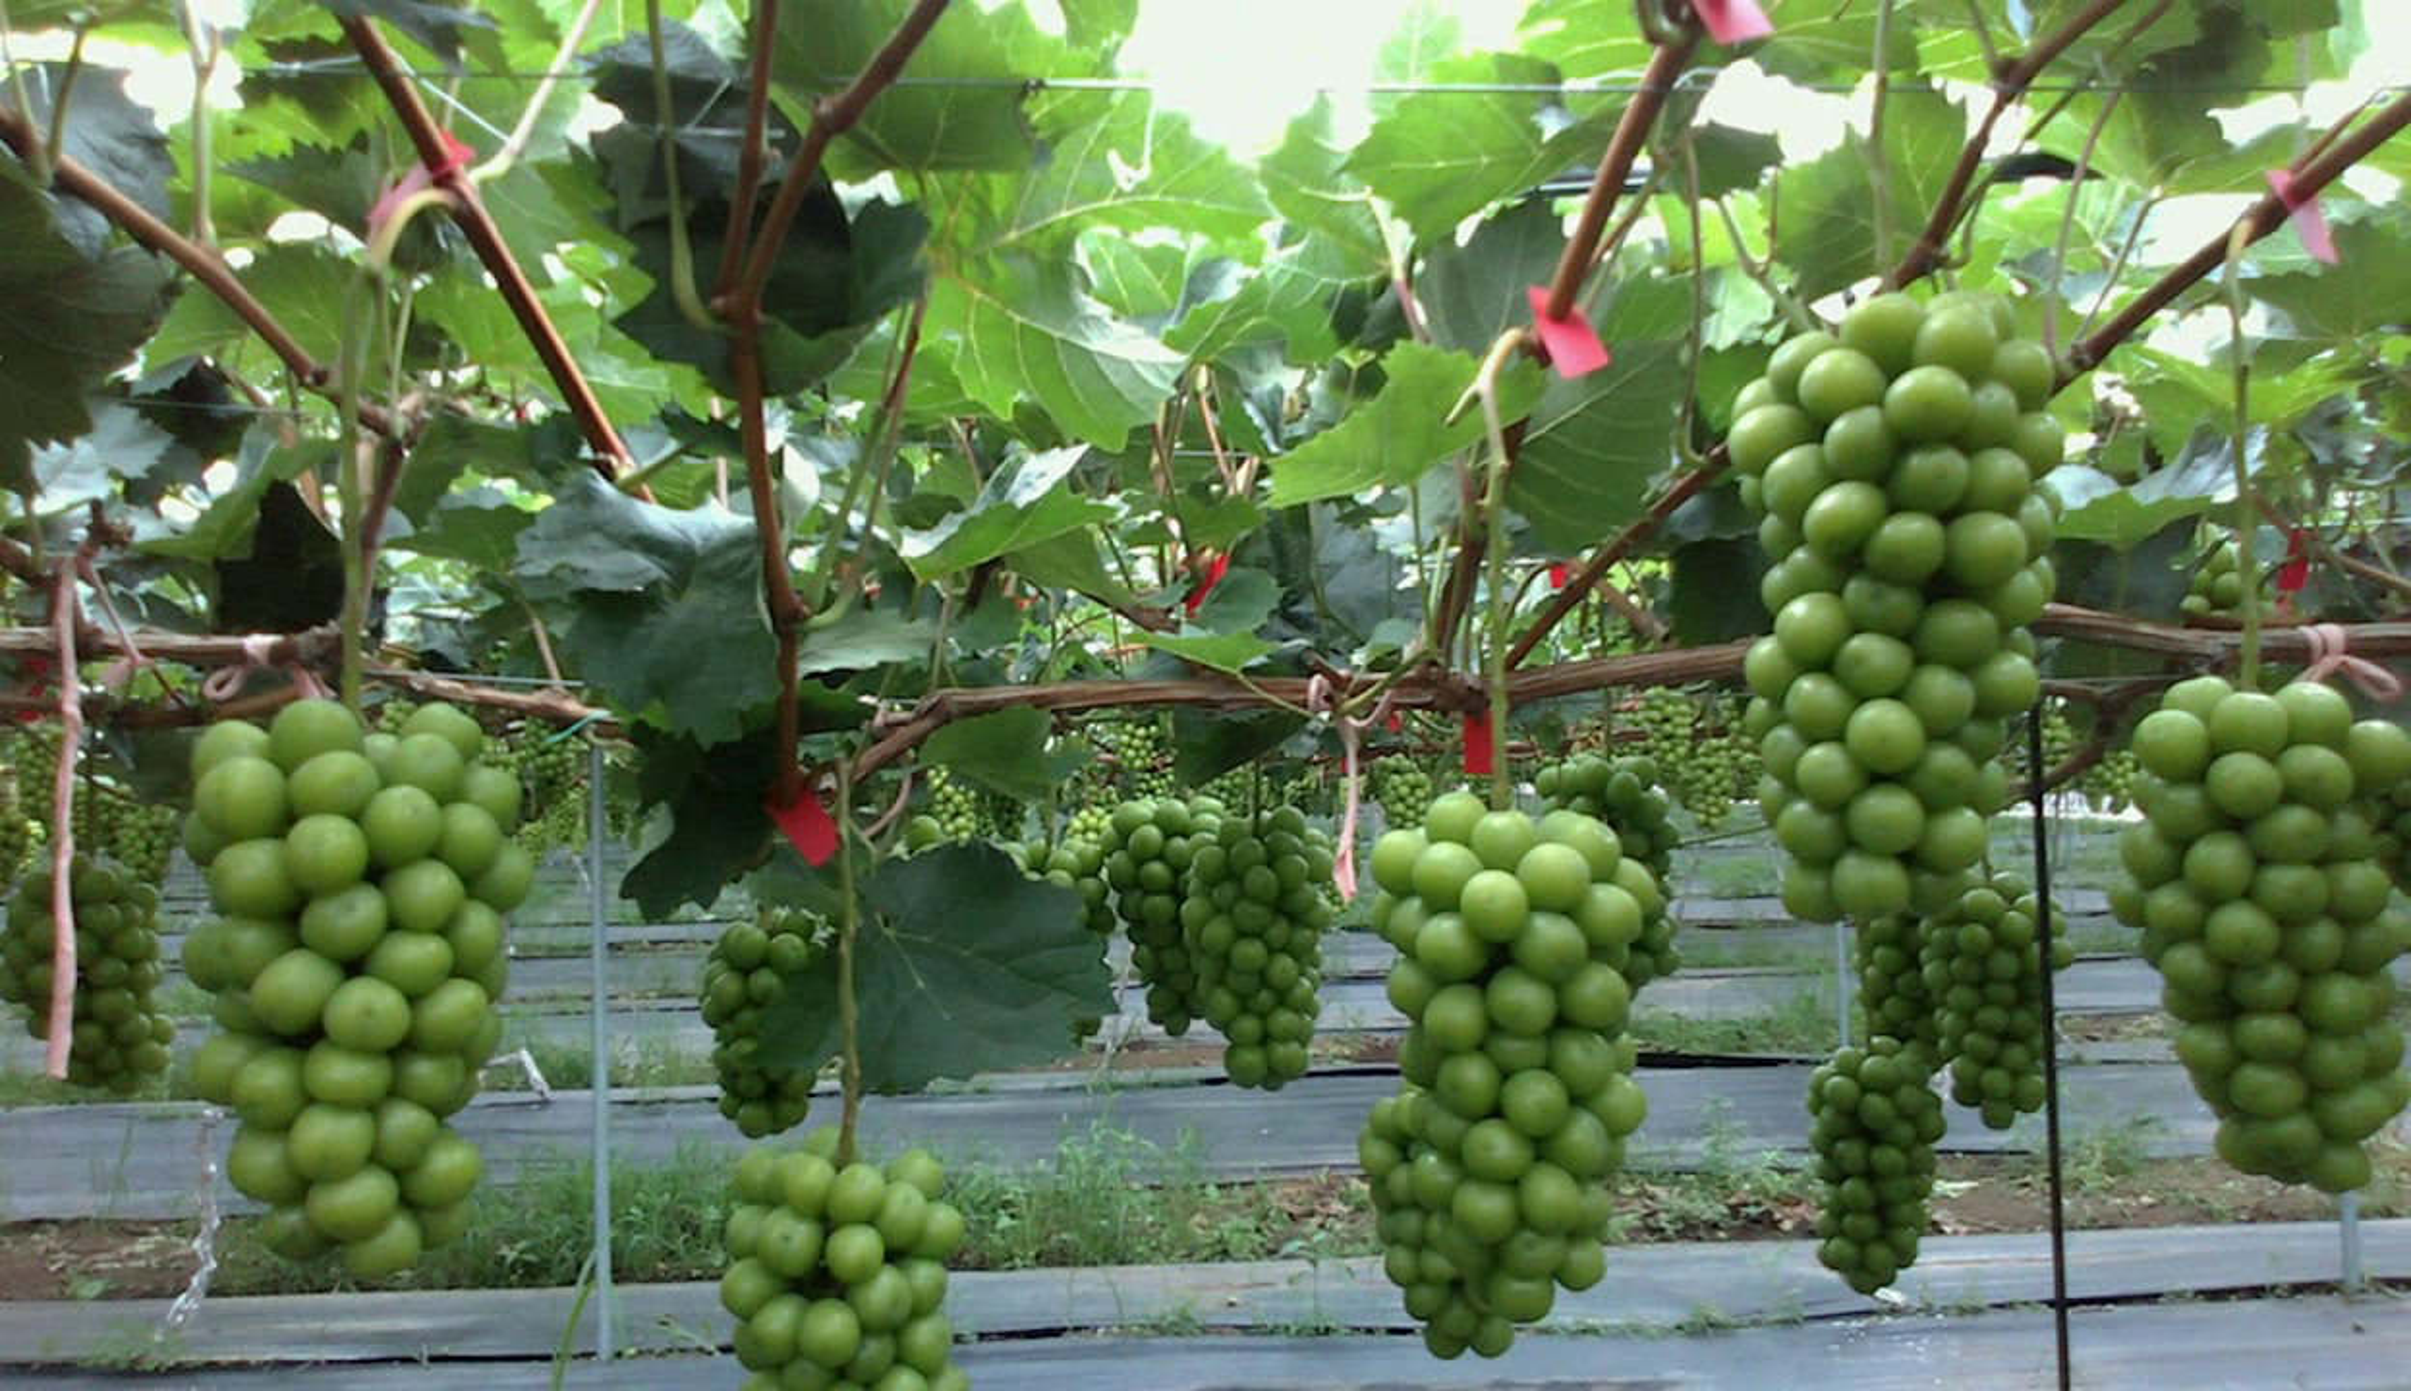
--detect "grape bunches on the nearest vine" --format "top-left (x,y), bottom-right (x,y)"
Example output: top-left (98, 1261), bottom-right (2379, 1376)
top-left (719, 1124), bottom-right (972, 1389)
top-left (178, 701), bottom-right (533, 1279)
top-left (1356, 790), bottom-right (1661, 1358)
top-left (1727, 290), bottom-right (2065, 927)
top-left (2104, 676), bottom-right (2409, 1196)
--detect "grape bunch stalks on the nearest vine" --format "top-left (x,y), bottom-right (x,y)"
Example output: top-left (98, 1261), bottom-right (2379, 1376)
top-left (338, 187), bottom-right (452, 723)
top-left (2224, 216), bottom-right (2256, 692)
top-left (1474, 328), bottom-right (1530, 811)
top-left (833, 761), bottom-right (860, 1175)
top-left (1864, 0), bottom-right (1897, 292)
